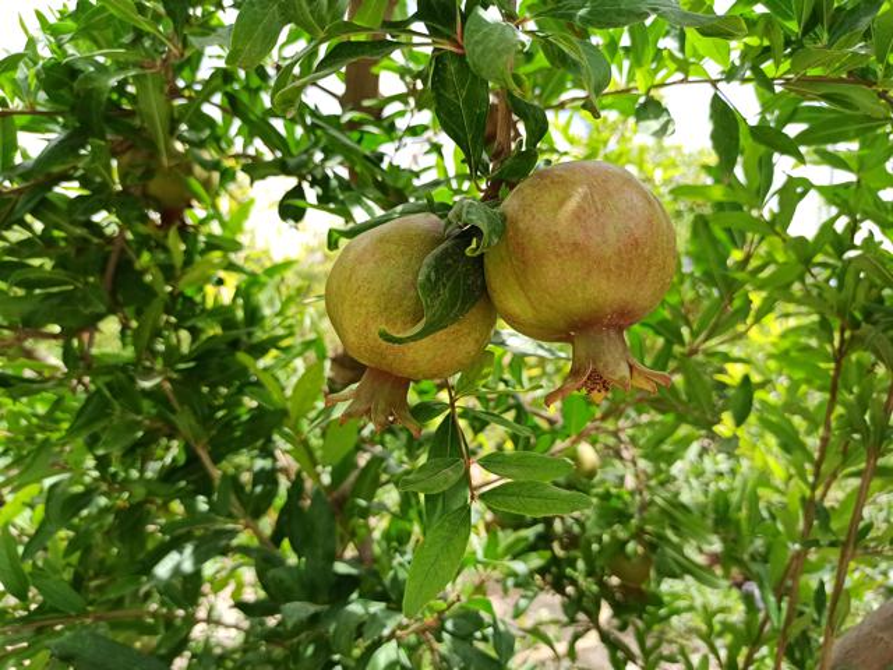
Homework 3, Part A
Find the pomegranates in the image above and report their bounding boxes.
[610,554,652,595]
[481,159,677,408]
[116,148,218,232]
[322,211,498,435]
